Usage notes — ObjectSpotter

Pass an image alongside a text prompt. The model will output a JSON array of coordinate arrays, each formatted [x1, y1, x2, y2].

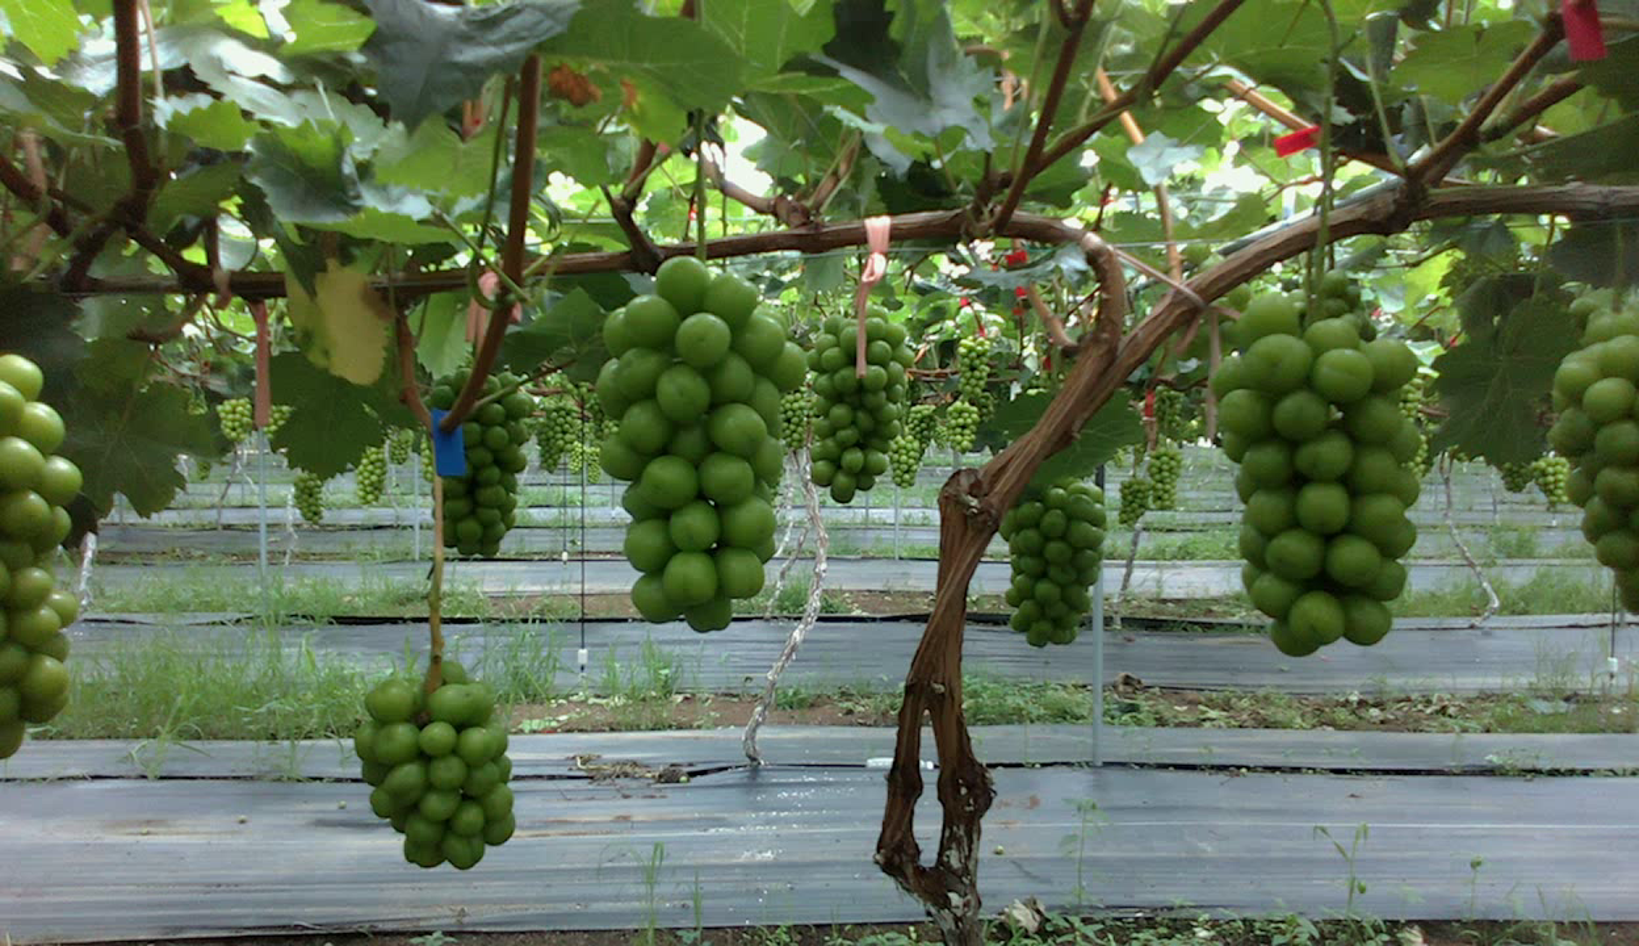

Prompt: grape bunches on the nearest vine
[[353, 661, 516, 870], [1207, 292, 1422, 658], [0, 355, 83, 759], [595, 255, 806, 633], [1544, 305, 1638, 615]]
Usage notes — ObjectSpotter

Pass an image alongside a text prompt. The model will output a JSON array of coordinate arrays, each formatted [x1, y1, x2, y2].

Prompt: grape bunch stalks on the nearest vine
[[1611, 225, 1625, 310], [692, 109, 708, 265], [424, 476, 444, 691], [20, 209, 106, 284], [1311, 0, 1340, 322]]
